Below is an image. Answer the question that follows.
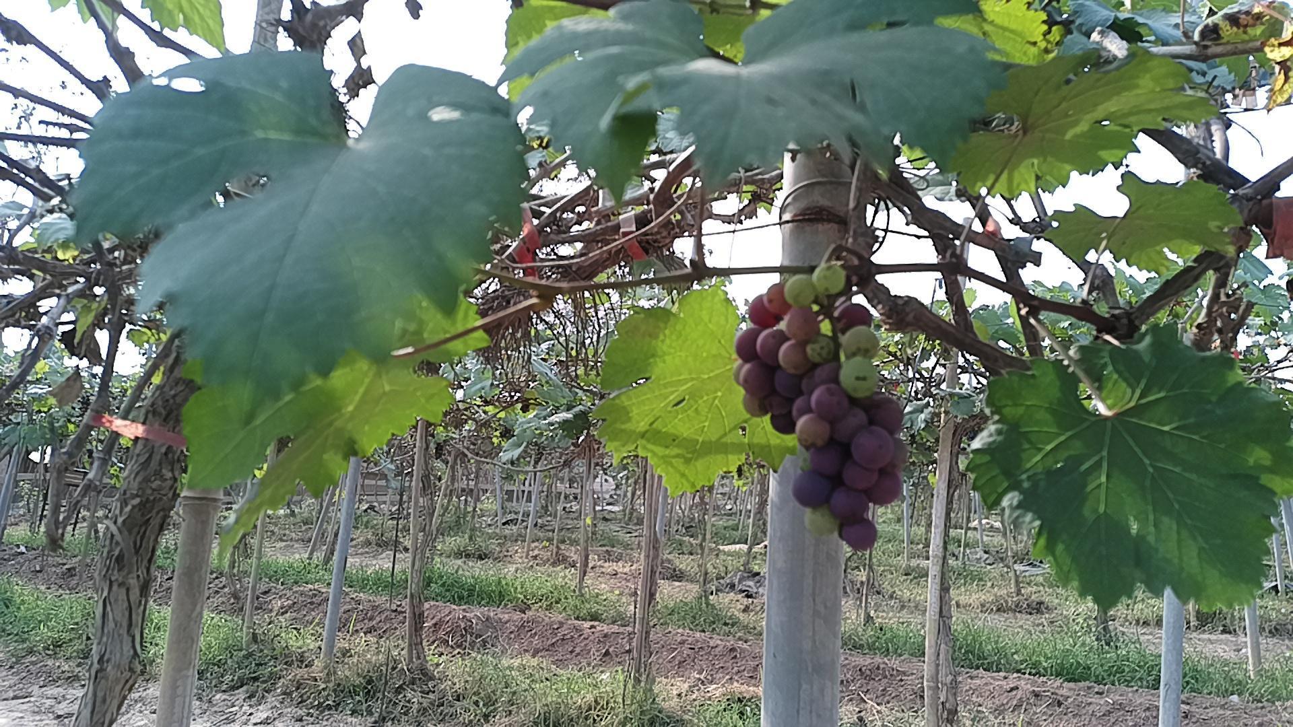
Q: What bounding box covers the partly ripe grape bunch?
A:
[733,262,906,551]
